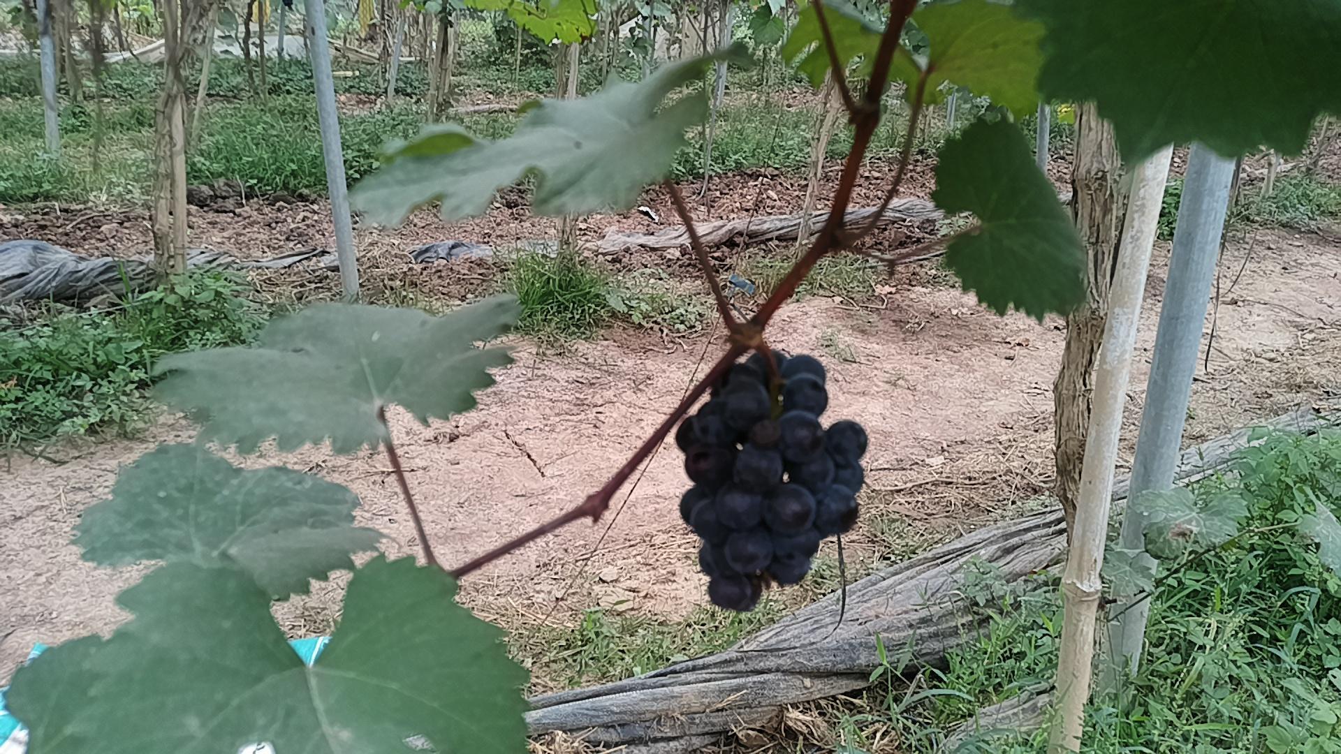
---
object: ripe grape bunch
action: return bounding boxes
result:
[675,350,867,611]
